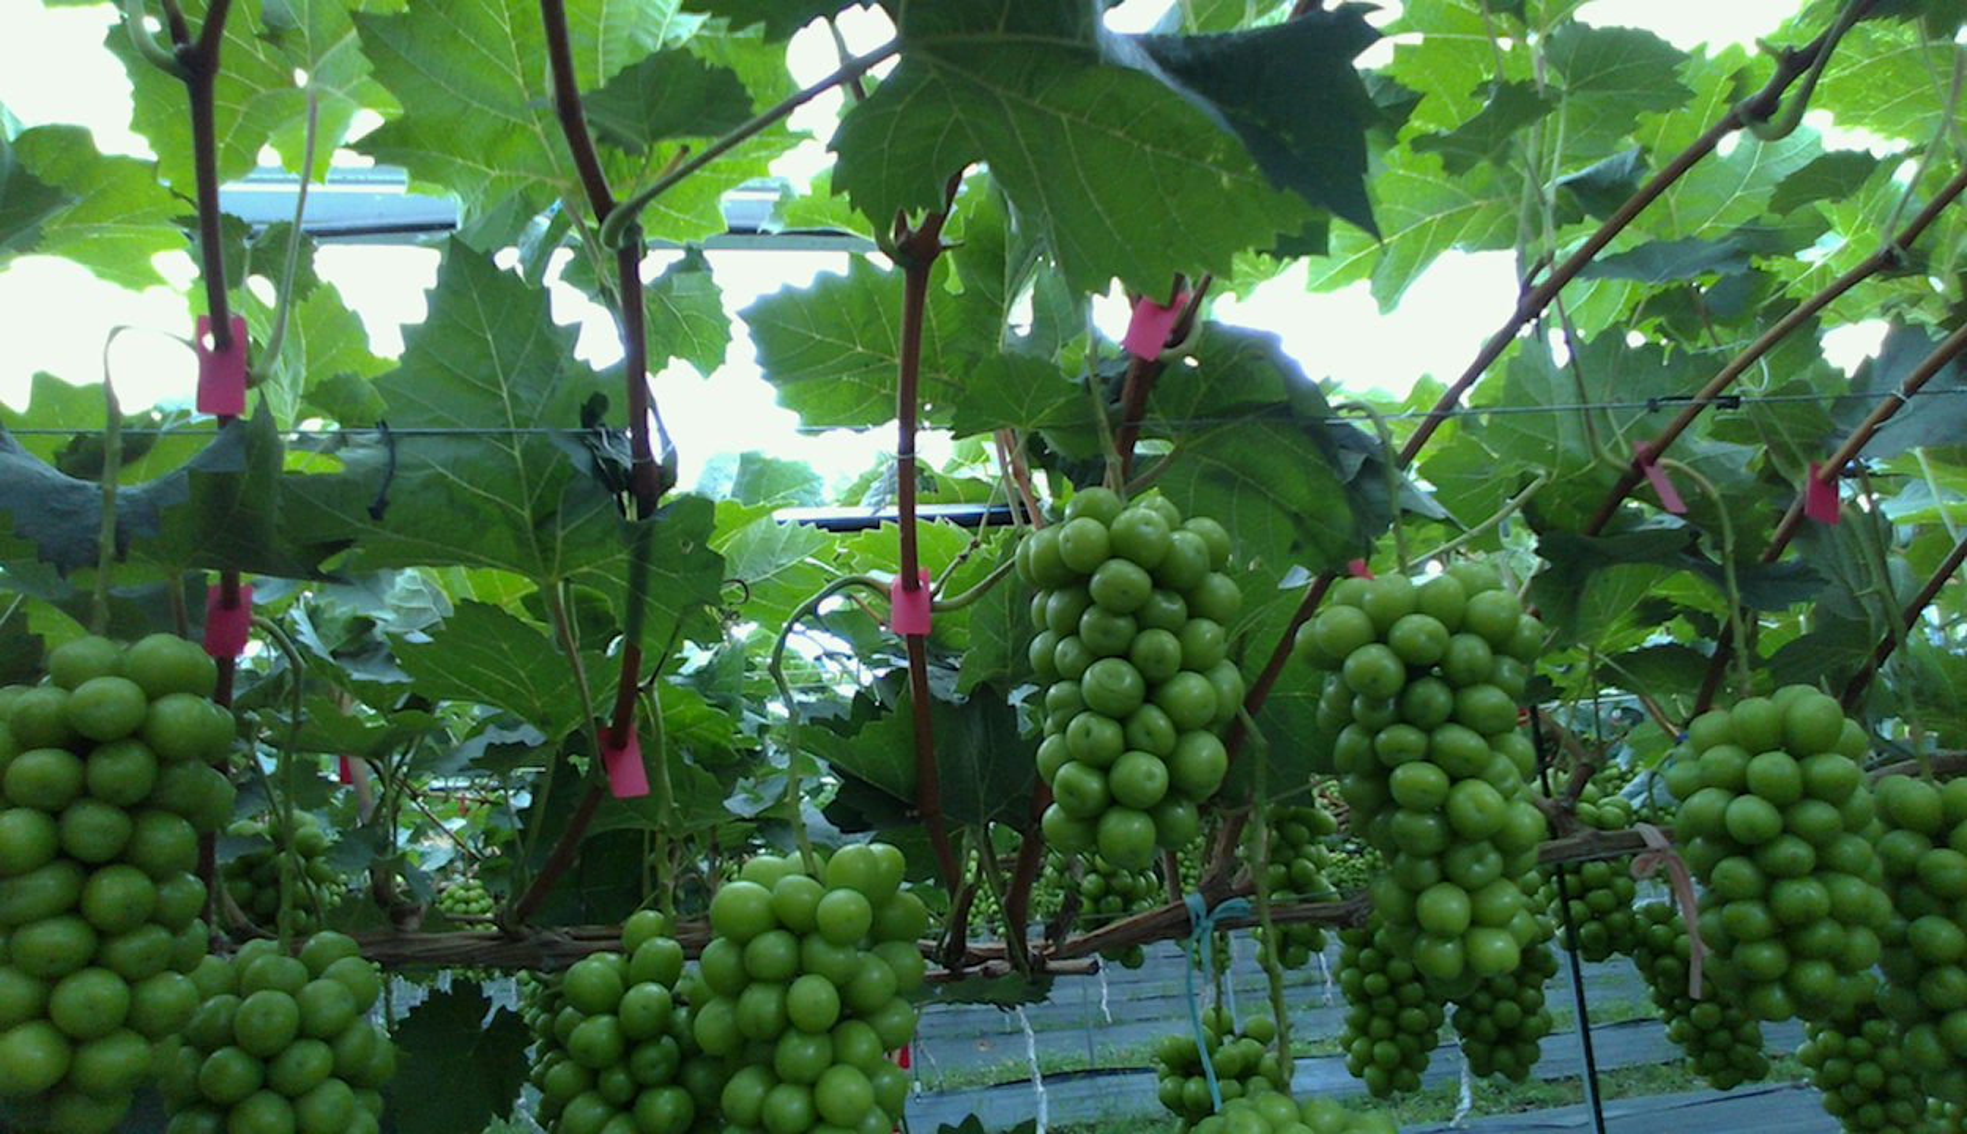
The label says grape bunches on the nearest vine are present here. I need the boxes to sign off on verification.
[0,633,240,1131]
[1666,687,1891,1022]
[159,934,397,1132]
[1199,1093,1398,1132]
[1299,559,1546,1000]
[1876,775,1965,1107]
[695,843,930,1132]
[542,907,723,1131]
[1013,485,1248,871]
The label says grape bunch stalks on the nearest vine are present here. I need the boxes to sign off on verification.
[646,696,673,932]
[771,575,864,879]
[1081,301,1124,496]
[1674,463,1751,695]
[1846,510,1932,780]
[1332,402,1407,570]
[265,624,306,953]
[1239,710,1292,1090]
[95,326,123,636]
